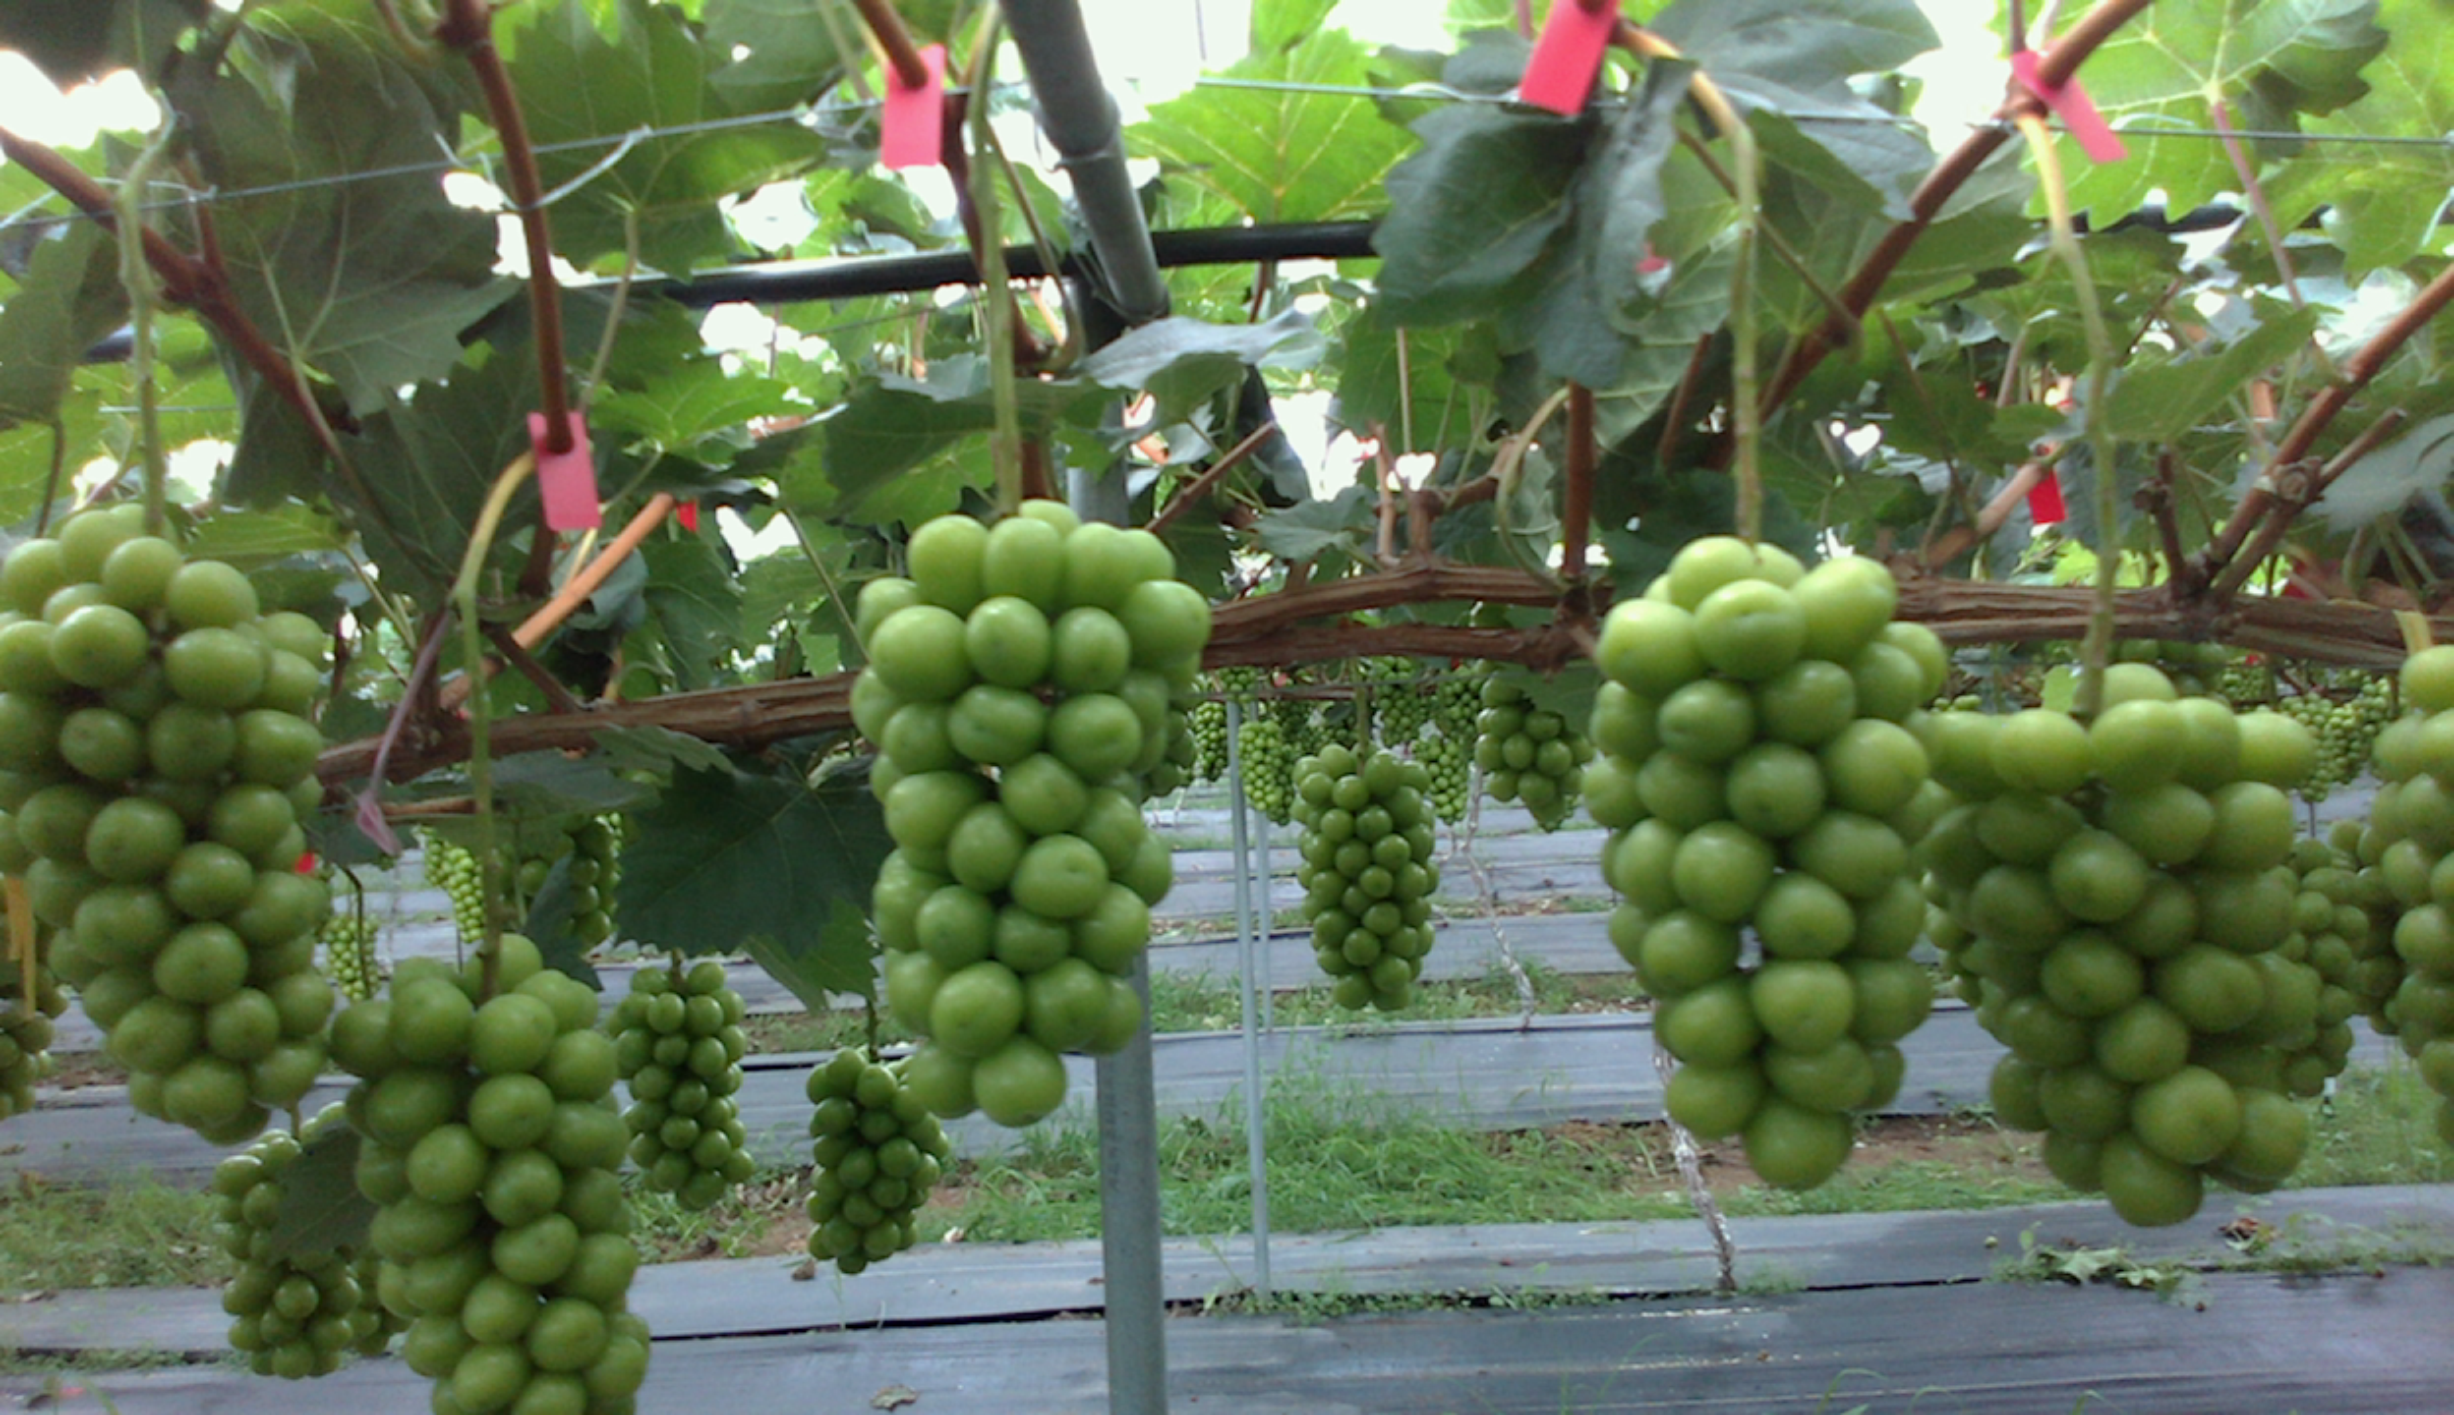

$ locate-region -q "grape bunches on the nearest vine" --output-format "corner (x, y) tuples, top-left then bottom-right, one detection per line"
(326, 935), (649, 1413)
(1585, 538), (1949, 1189)
(847, 499), (1205, 1134)
(1921, 660), (2314, 1230)
(0, 501), (332, 1150)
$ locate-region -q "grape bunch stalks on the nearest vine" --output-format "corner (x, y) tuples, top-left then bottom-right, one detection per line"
(2023, 122), (2122, 721)
(1689, 77), (1760, 542)
(446, 454), (531, 1002)
(965, 8), (1021, 515)
(110, 112), (193, 535)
